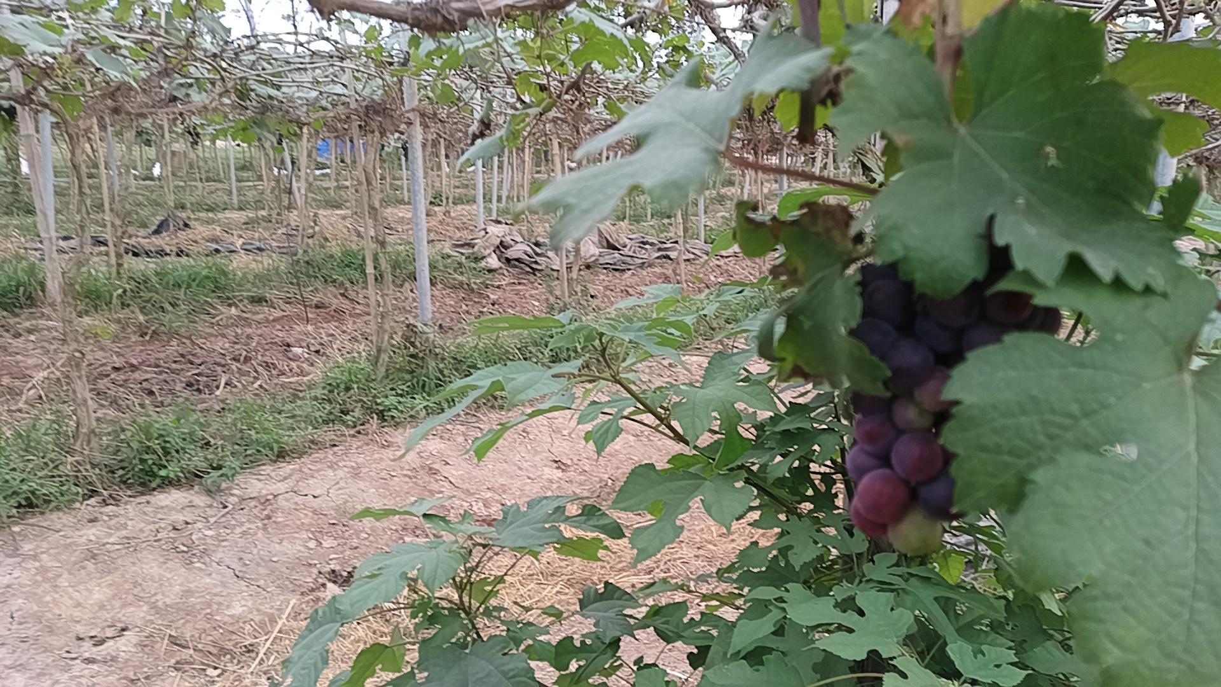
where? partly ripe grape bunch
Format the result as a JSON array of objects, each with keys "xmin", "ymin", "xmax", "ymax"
[{"xmin": 845, "ymin": 247, "xmax": 1061, "ymax": 553}]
